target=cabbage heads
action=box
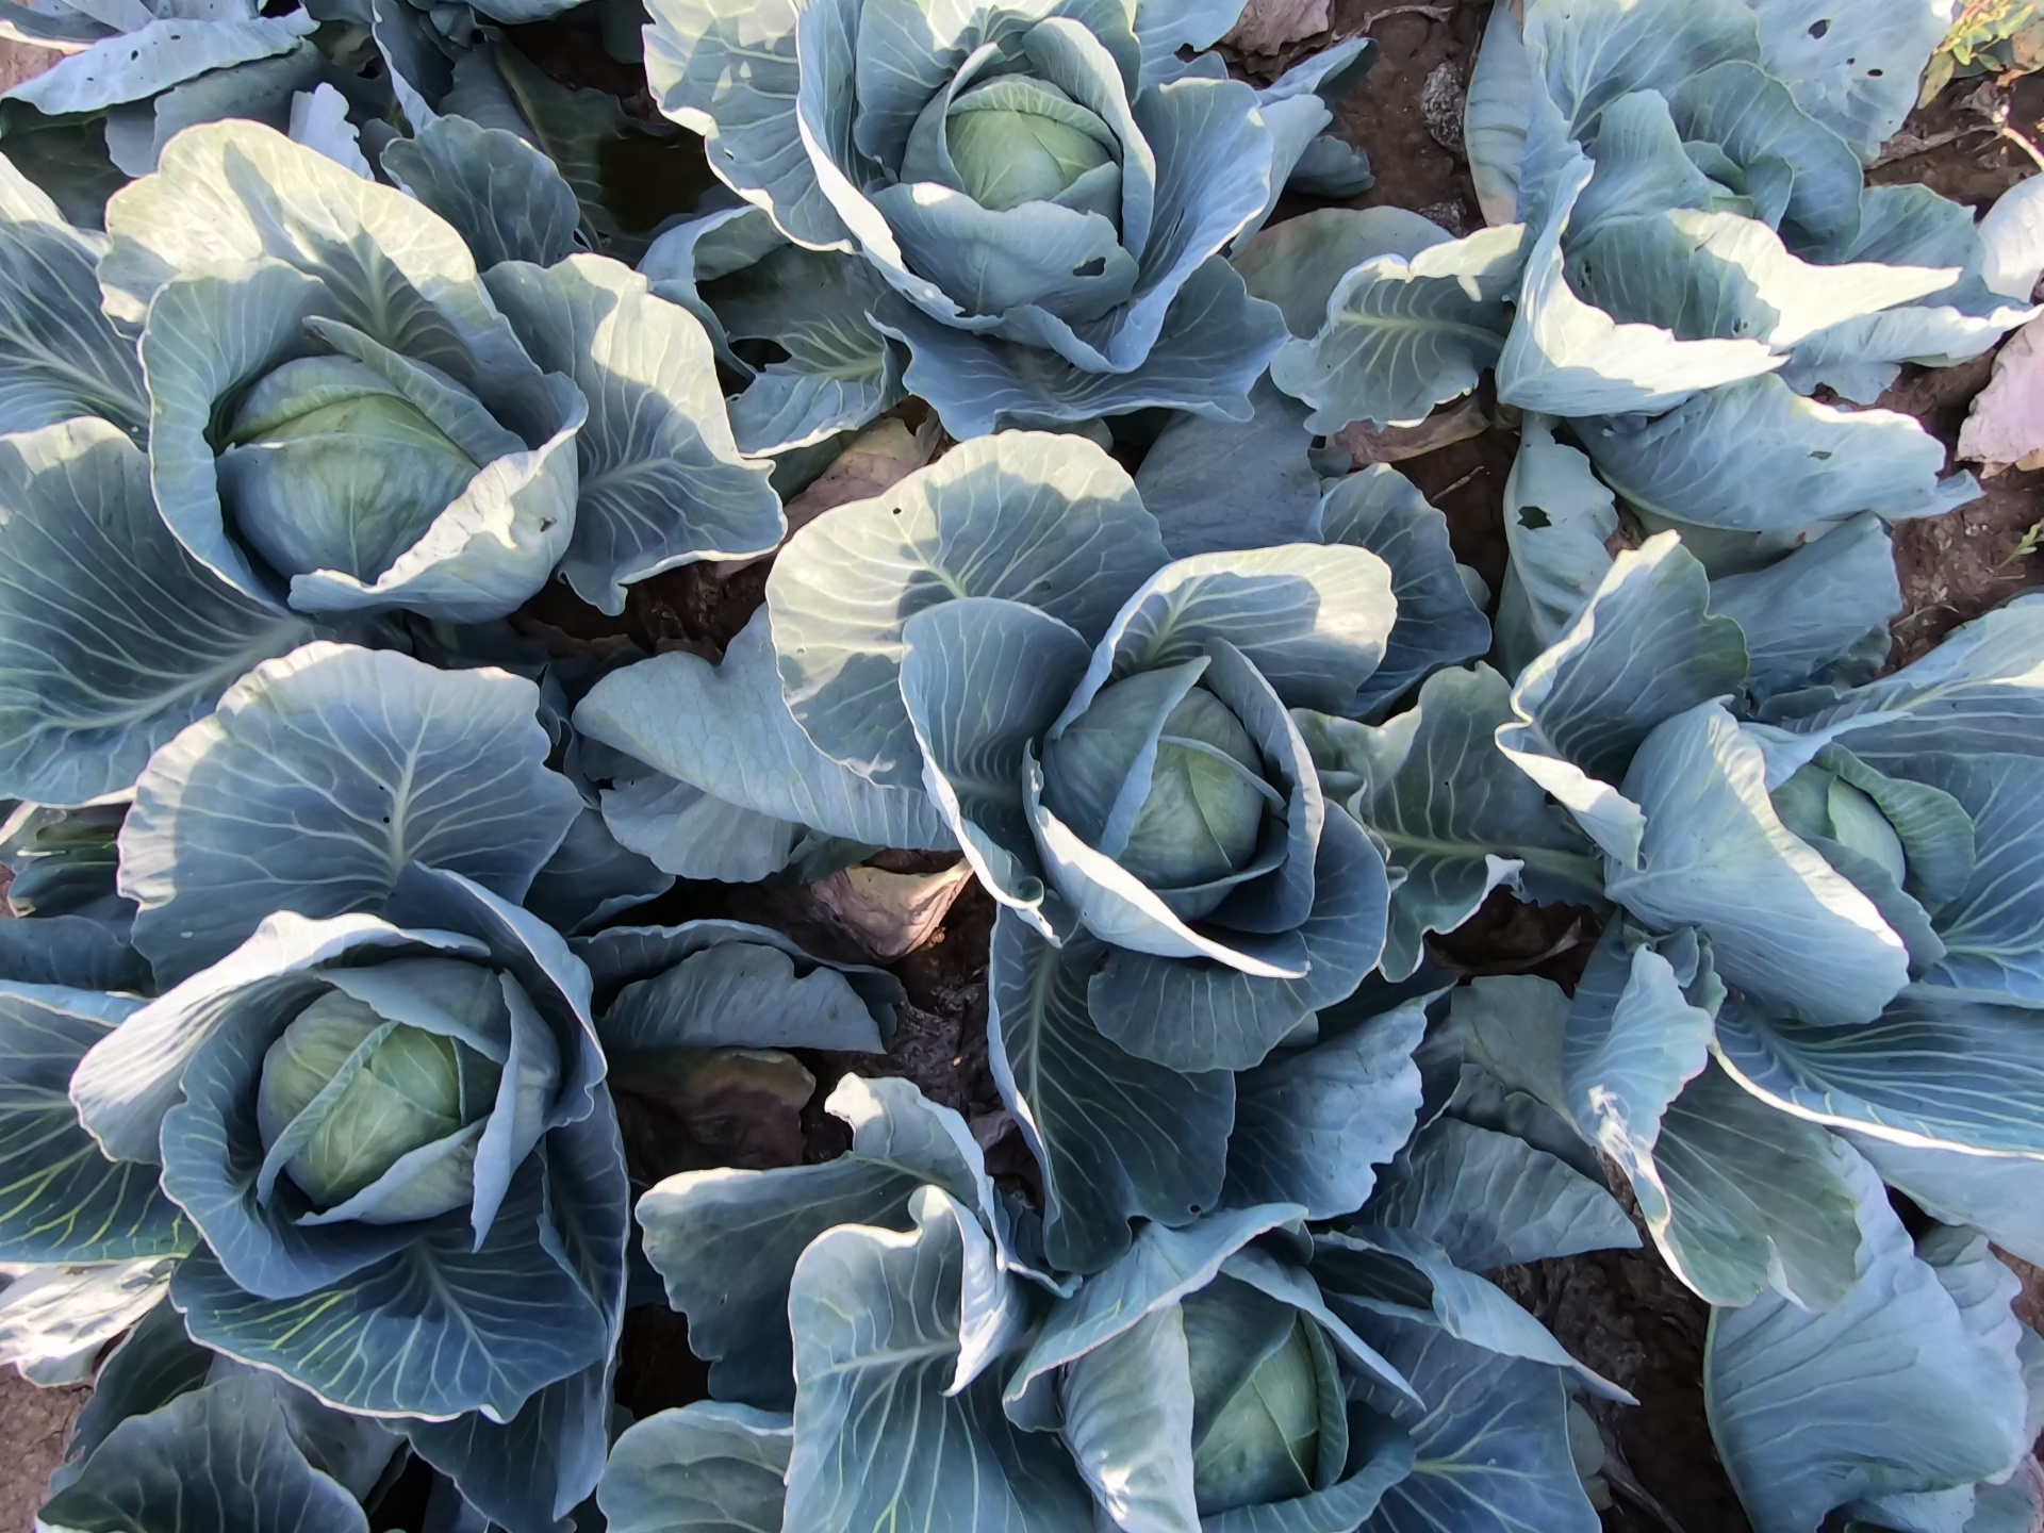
[910,70,1125,296]
[1567,165,1759,335]
[1686,737,1912,961]
[231,355,506,576]
[1051,676,1268,891]
[1077,1246,1346,1516]
[257,961,544,1213]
